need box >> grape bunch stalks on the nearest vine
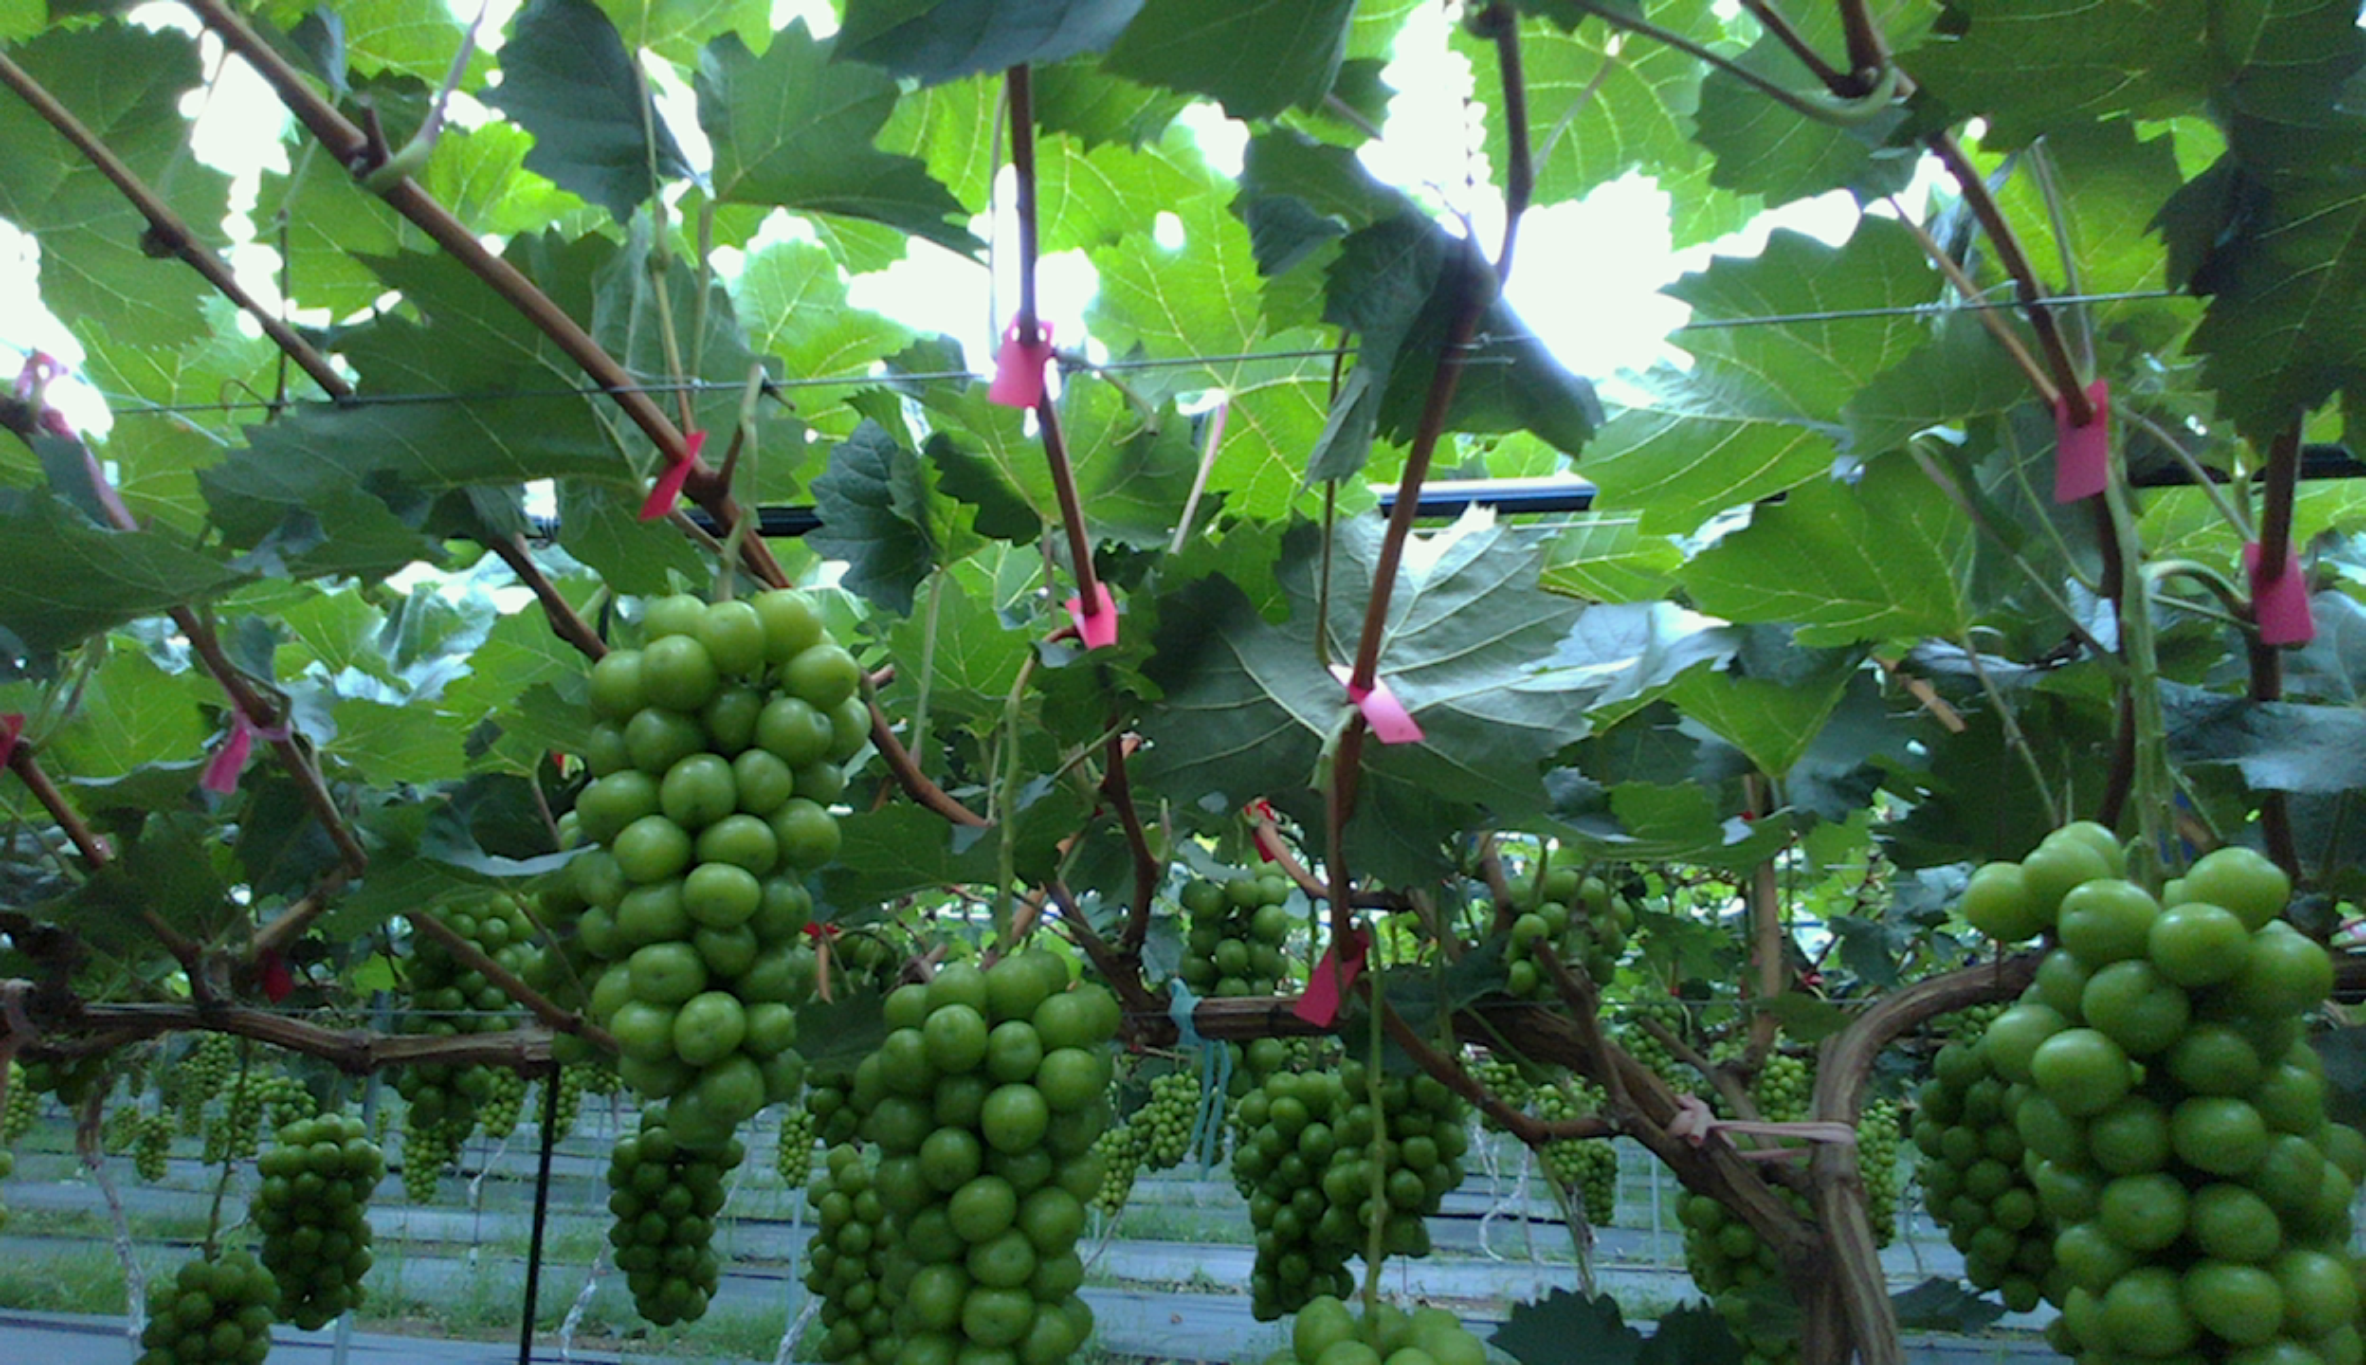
[2104,461,2167,904]
[717,362,796,603]
[995,624,1081,955]
[1354,910,1386,1350]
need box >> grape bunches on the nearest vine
[576,588,872,1149]
[1261,1295,1486,1361]
[853,950,1119,1363]
[1960,819,2364,1363]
